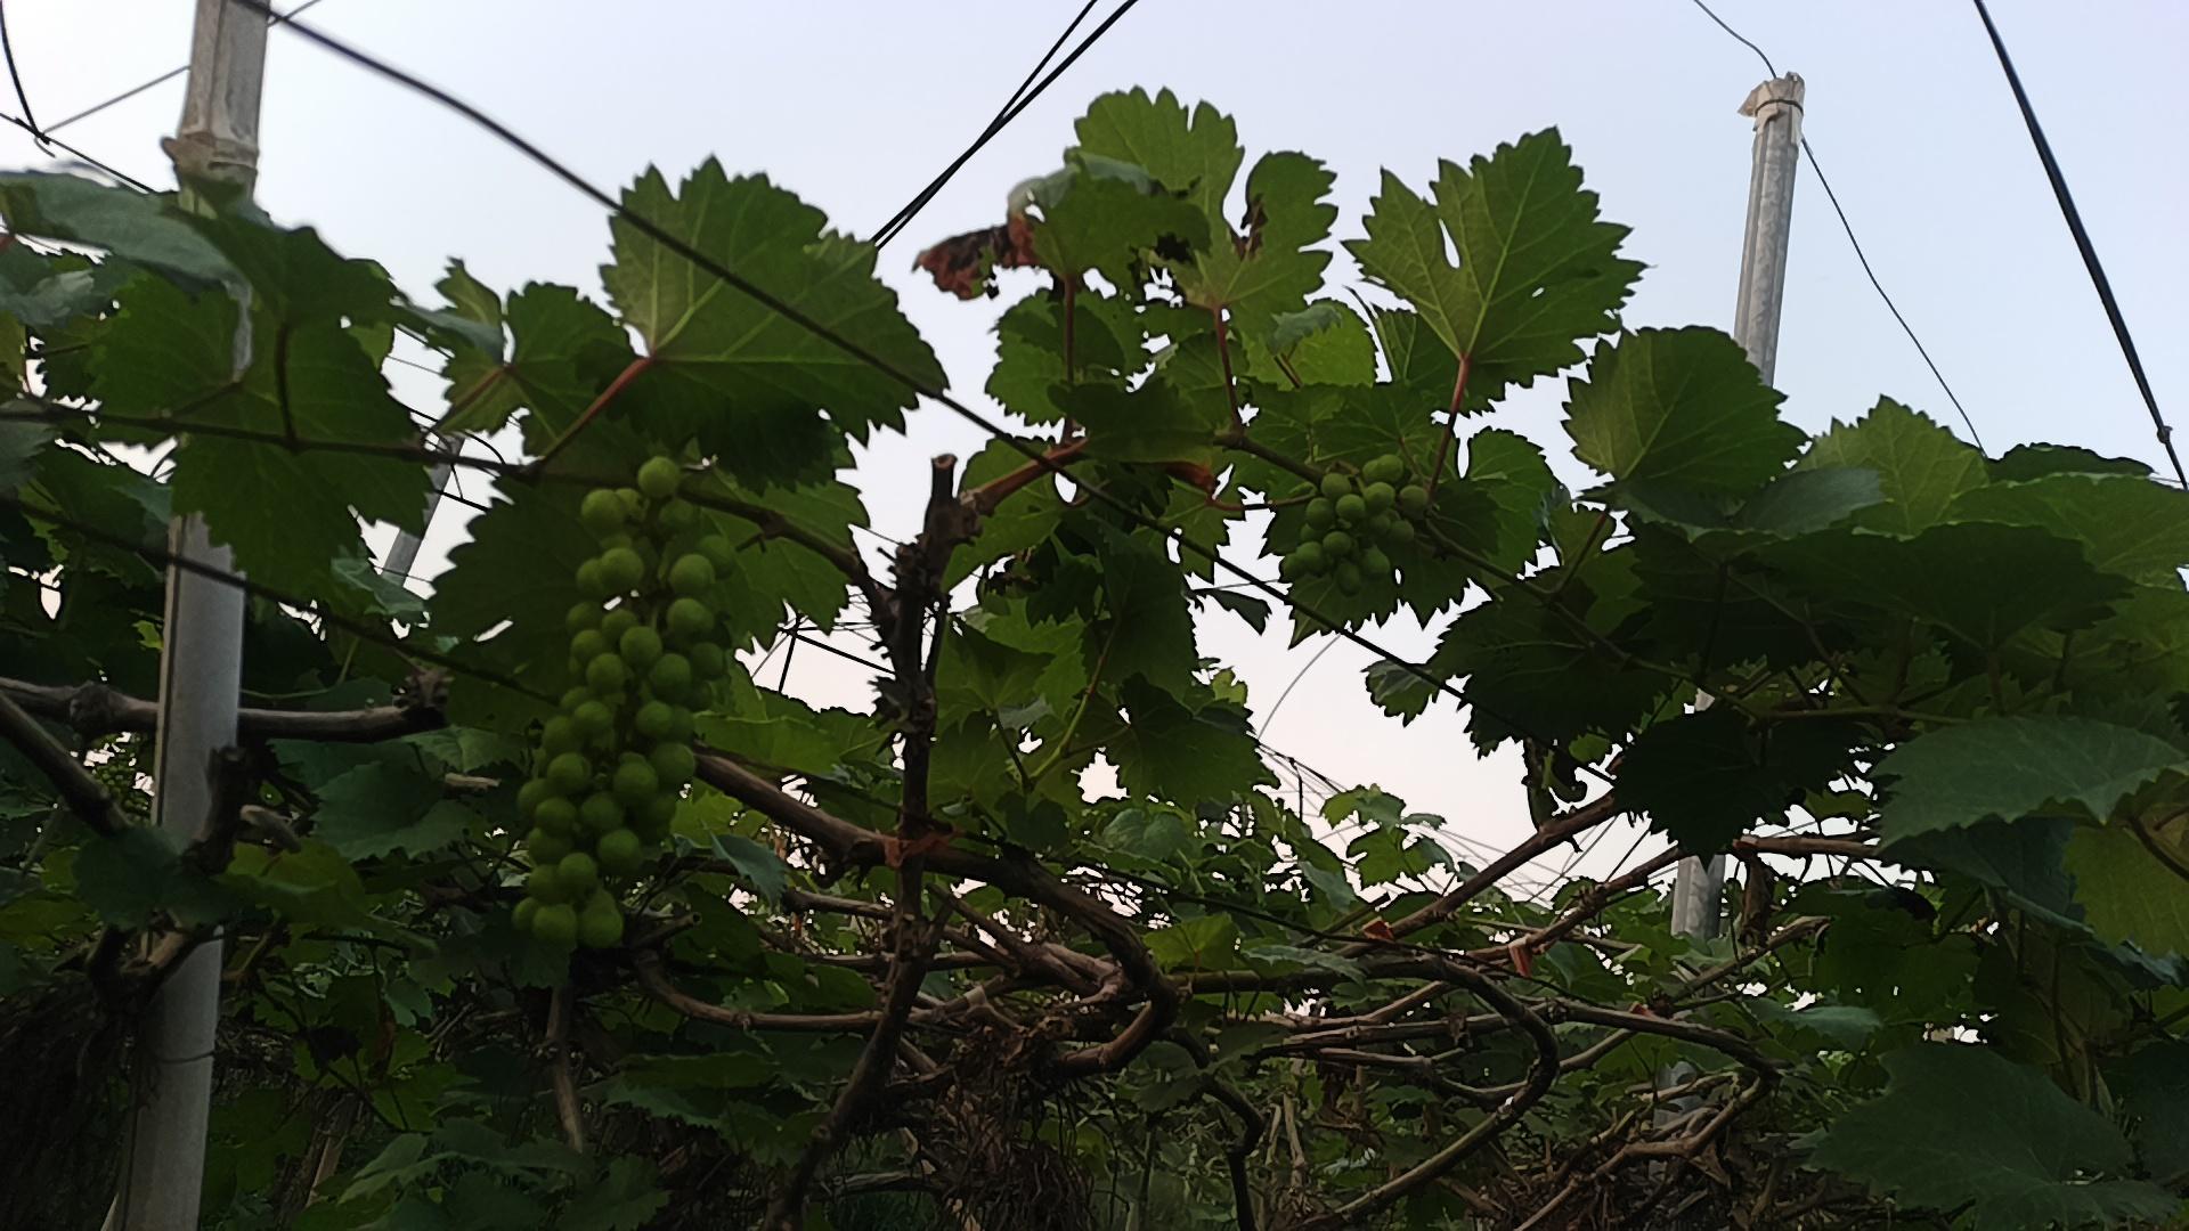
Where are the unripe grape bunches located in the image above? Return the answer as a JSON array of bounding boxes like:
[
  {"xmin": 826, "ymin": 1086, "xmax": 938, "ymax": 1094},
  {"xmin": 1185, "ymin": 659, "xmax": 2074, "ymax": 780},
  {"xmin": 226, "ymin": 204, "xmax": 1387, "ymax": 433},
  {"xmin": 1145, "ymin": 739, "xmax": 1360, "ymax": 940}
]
[
  {"xmin": 1285, "ymin": 459, "xmax": 1426, "ymax": 592},
  {"xmin": 514, "ymin": 458, "xmax": 726, "ymax": 948}
]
